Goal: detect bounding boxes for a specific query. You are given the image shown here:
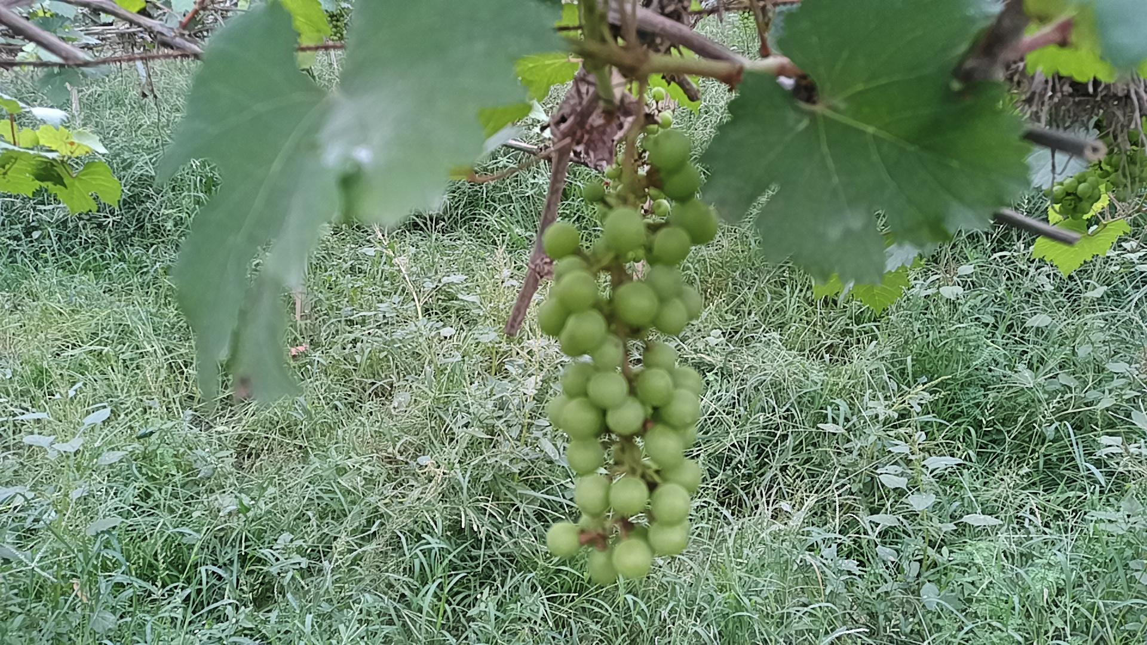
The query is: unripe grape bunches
[539,125,717,582]
[1048,162,1111,224]
[1099,128,1146,202]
